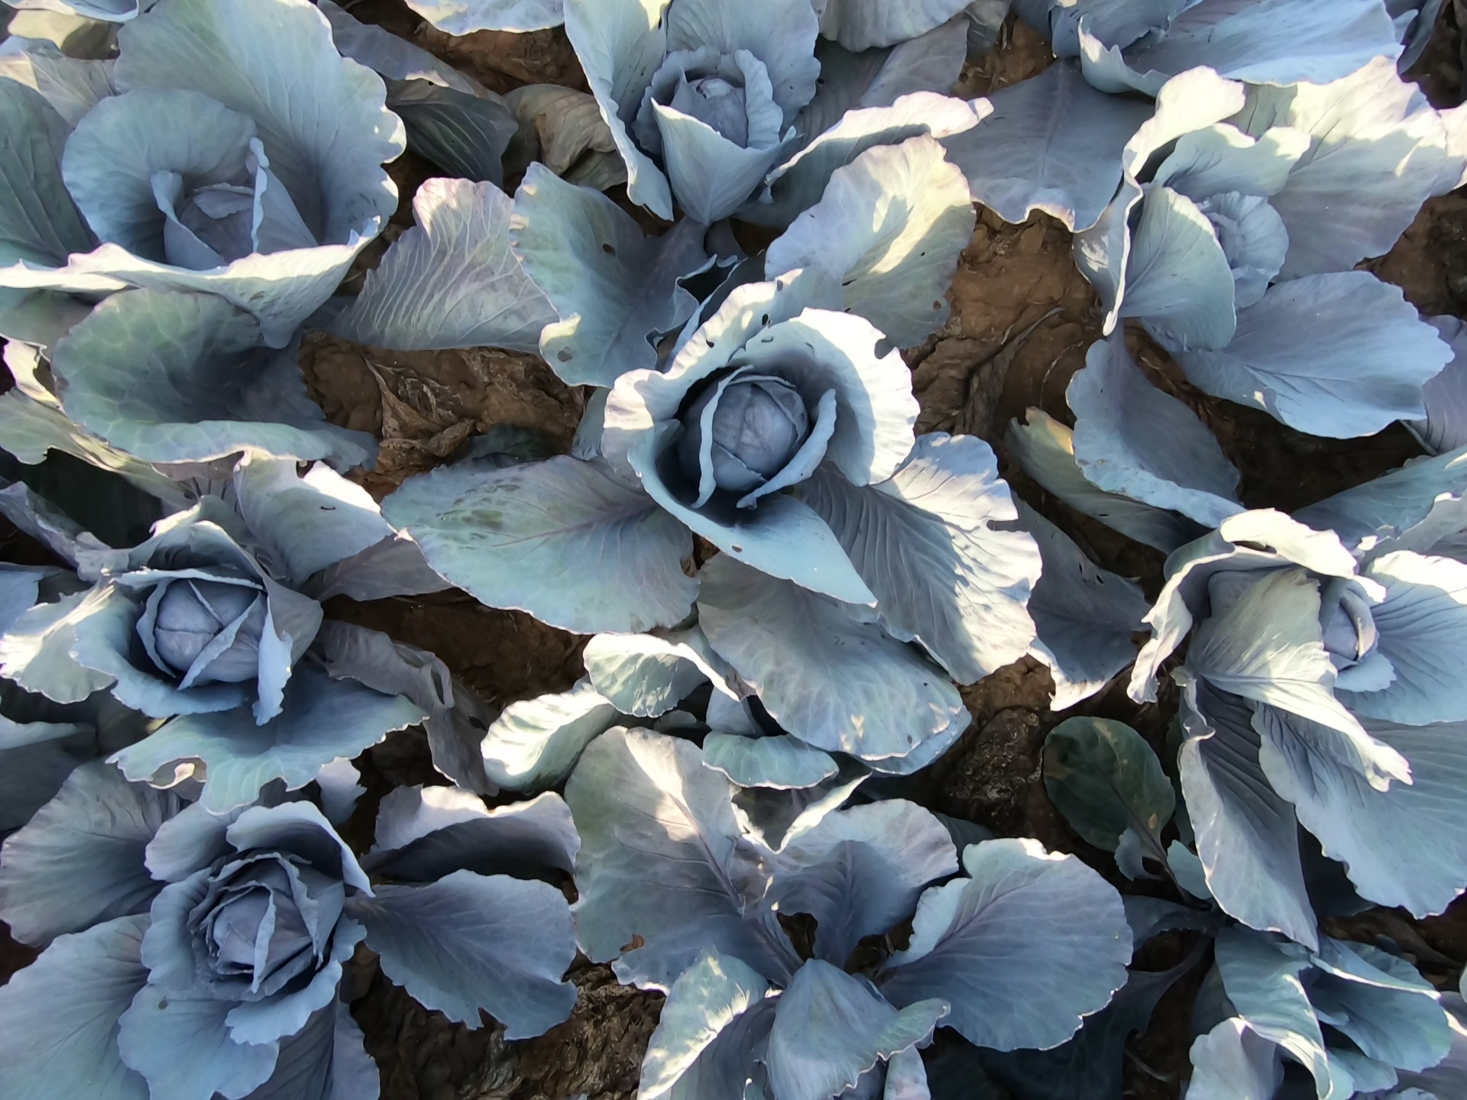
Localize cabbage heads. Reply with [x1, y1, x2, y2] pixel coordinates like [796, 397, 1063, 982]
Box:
[210, 885, 311, 966]
[770, 1005, 886, 1096]
[694, 374, 808, 485]
[671, 74, 751, 176]
[1252, 581, 1377, 681]
[154, 571, 273, 681]
[172, 186, 299, 310]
